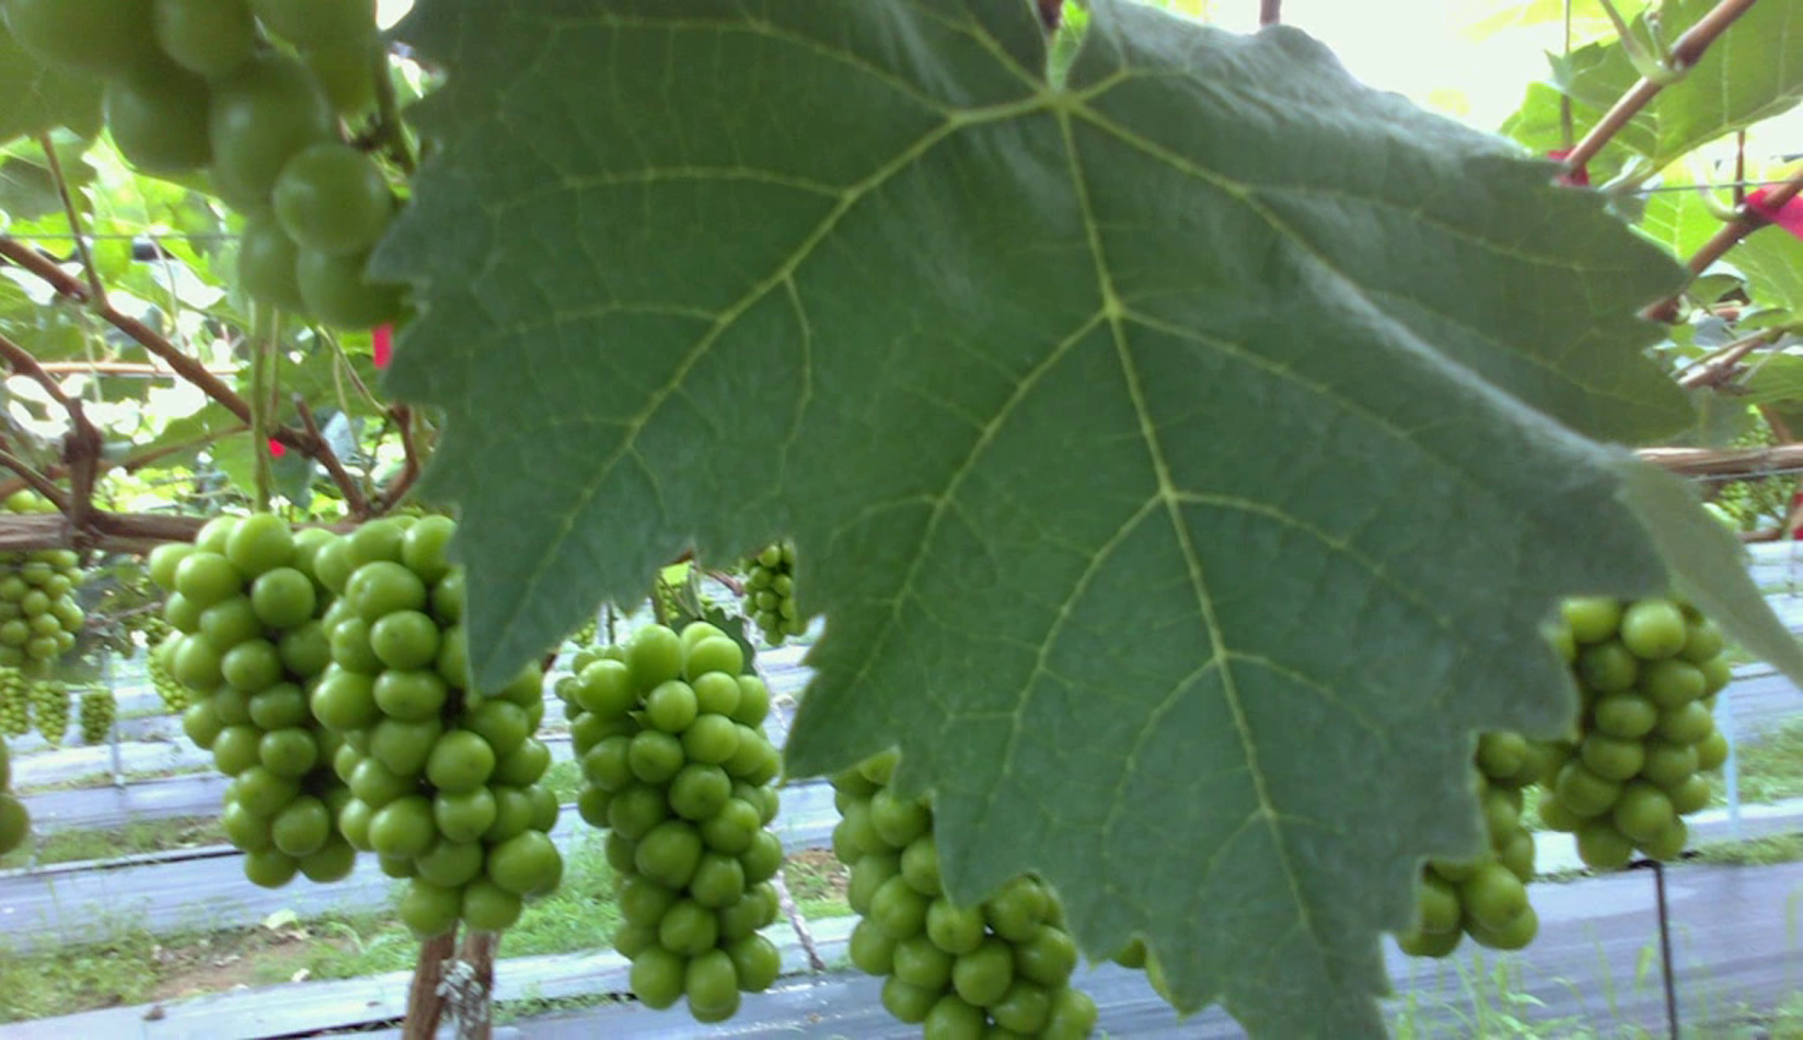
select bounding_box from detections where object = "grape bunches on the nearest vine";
[1,3,396,328]
[1398,731,1543,956]
[1539,592,1731,872]
[146,511,355,890]
[312,516,561,933]
[558,621,783,1021]
[829,748,1095,1039]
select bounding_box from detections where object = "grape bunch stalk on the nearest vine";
[250,306,272,514]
